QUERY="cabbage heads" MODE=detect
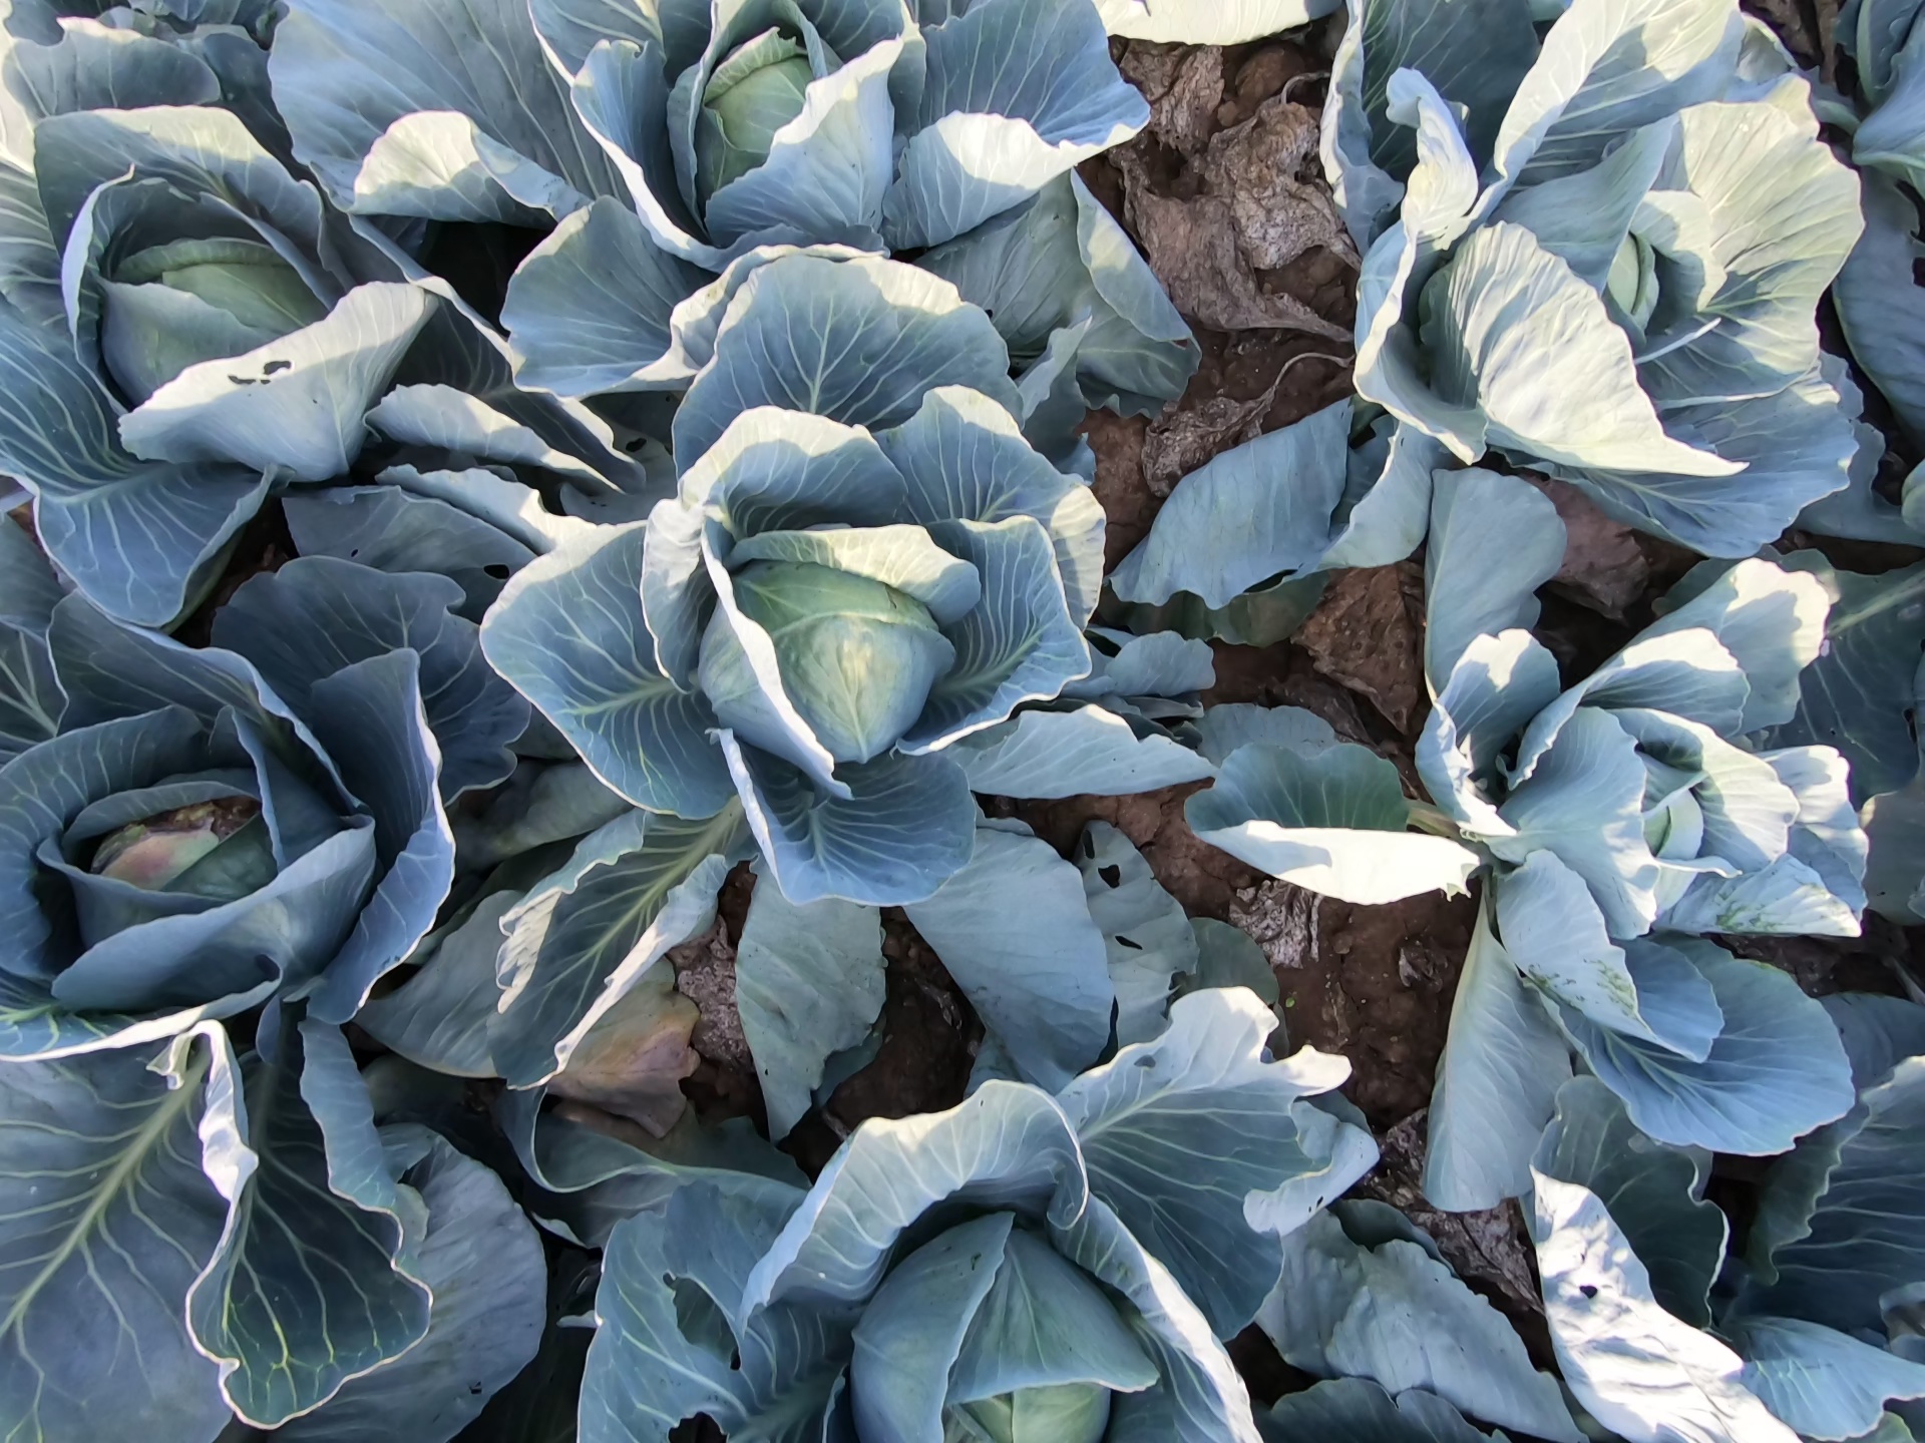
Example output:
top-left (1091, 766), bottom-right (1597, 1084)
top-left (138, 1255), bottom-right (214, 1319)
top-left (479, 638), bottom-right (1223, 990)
top-left (66, 768), bottom-right (345, 991)
top-left (103, 236), bottom-right (353, 431)
top-left (713, 536), bottom-right (949, 758)
top-left (1497, 189), bottom-right (1659, 366)
top-left (891, 1236), bottom-right (1110, 1441)
top-left (1552, 758), bottom-right (1707, 923)
top-left (684, 39), bottom-right (880, 252)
